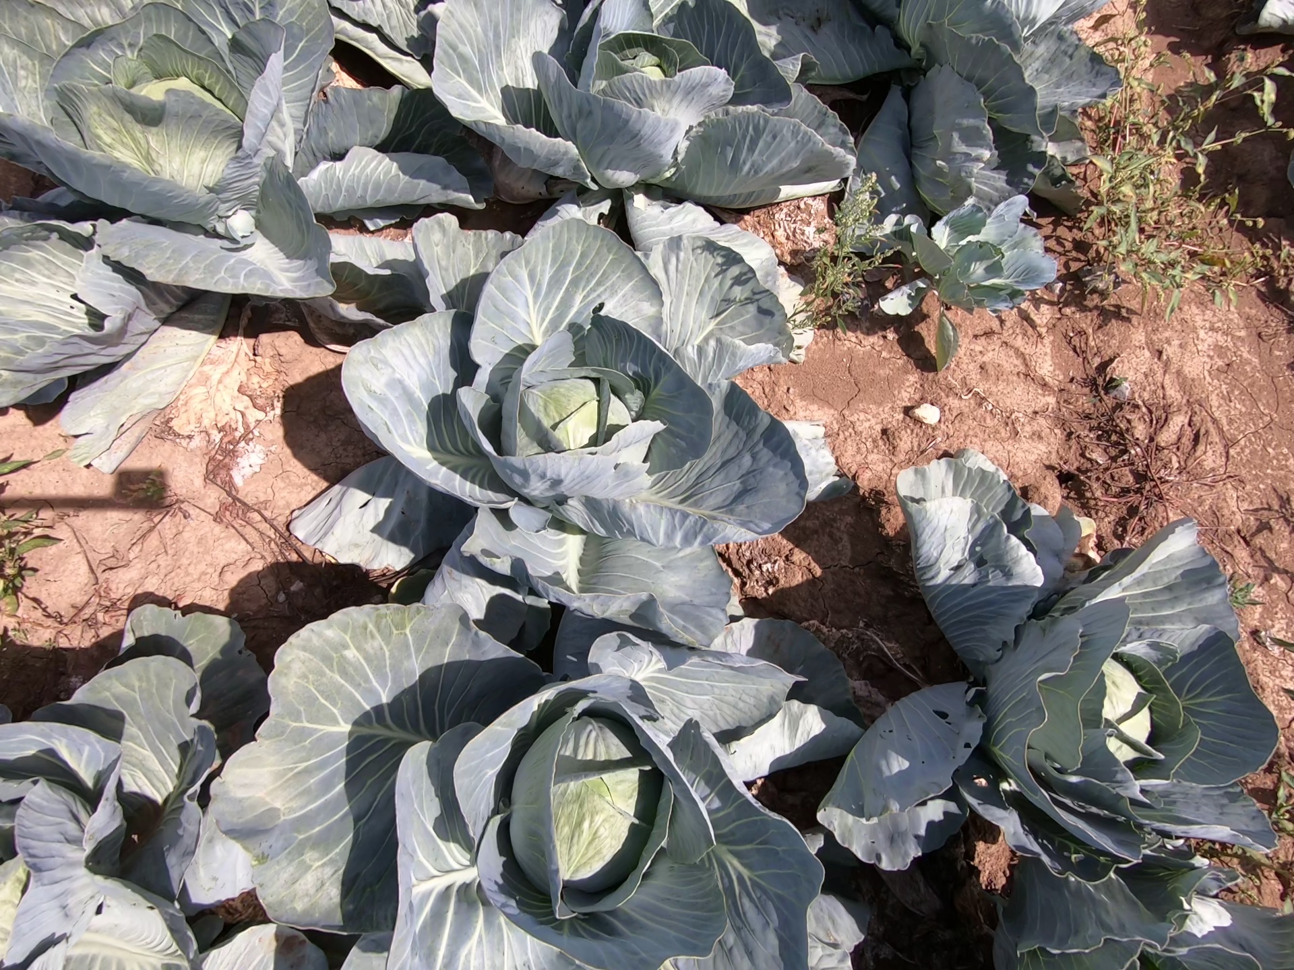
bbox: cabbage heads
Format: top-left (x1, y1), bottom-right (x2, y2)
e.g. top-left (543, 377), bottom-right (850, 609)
top-left (1066, 648), bottom-right (1160, 761)
top-left (584, 49), bottom-right (679, 143)
top-left (510, 706), bottom-right (667, 898)
top-left (510, 375), bottom-right (636, 495)
top-left (104, 74), bottom-right (248, 223)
